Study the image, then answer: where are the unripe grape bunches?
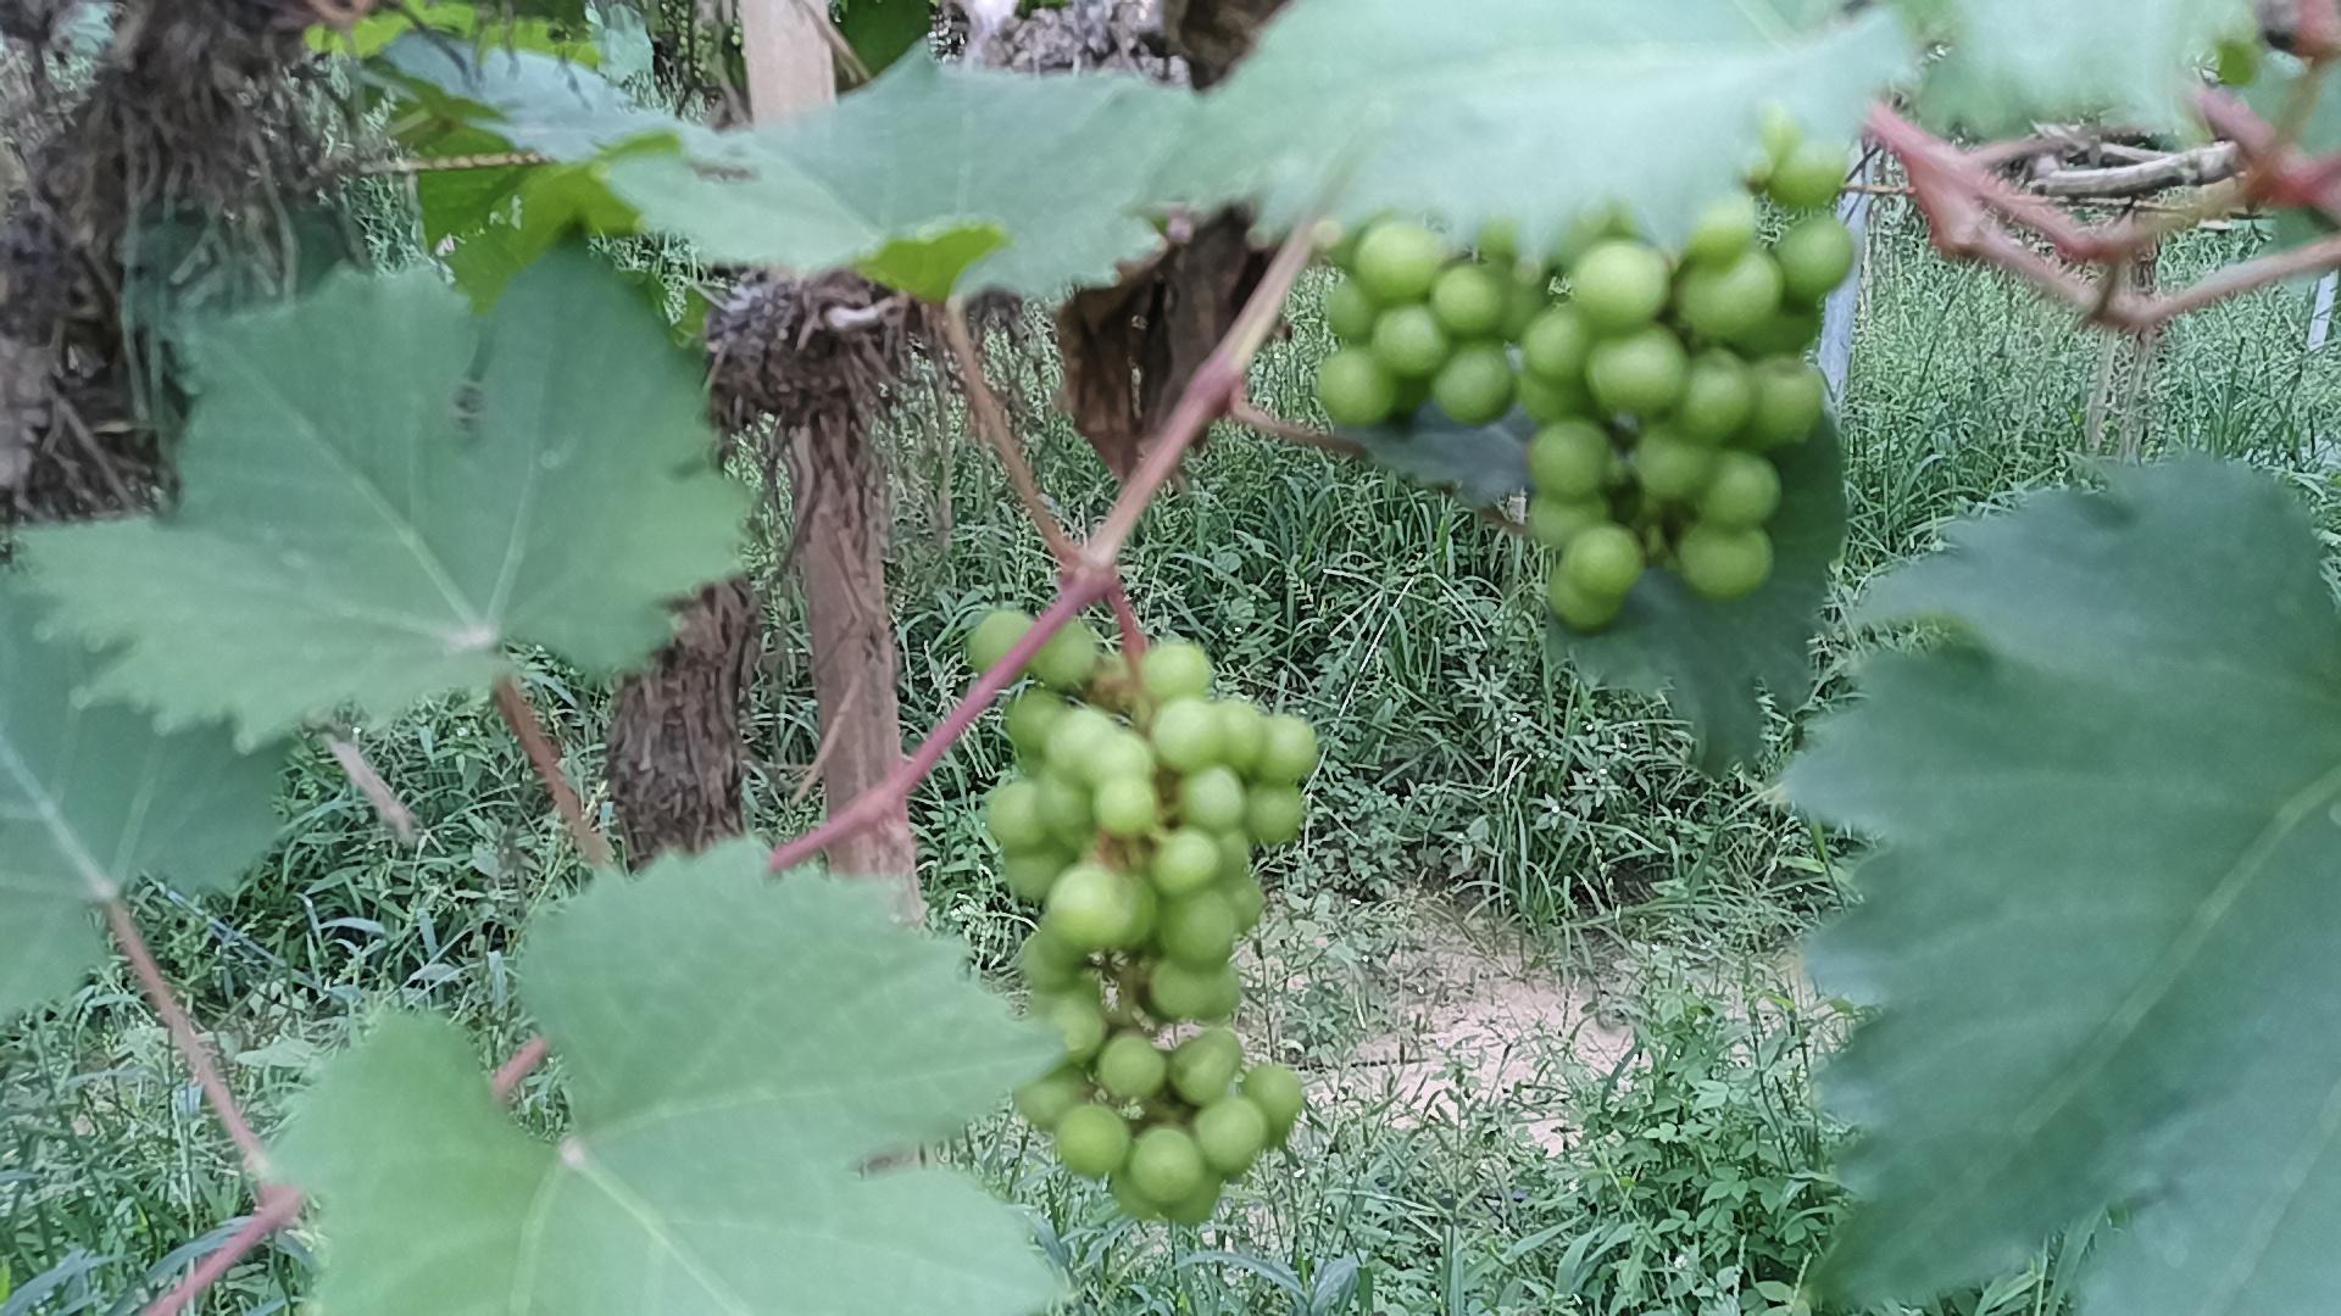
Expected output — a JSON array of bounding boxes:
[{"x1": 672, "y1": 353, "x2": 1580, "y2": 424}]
[
  {"x1": 1318, "y1": 121, "x2": 1852, "y2": 630},
  {"x1": 968, "y1": 608, "x2": 1317, "y2": 1225}
]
